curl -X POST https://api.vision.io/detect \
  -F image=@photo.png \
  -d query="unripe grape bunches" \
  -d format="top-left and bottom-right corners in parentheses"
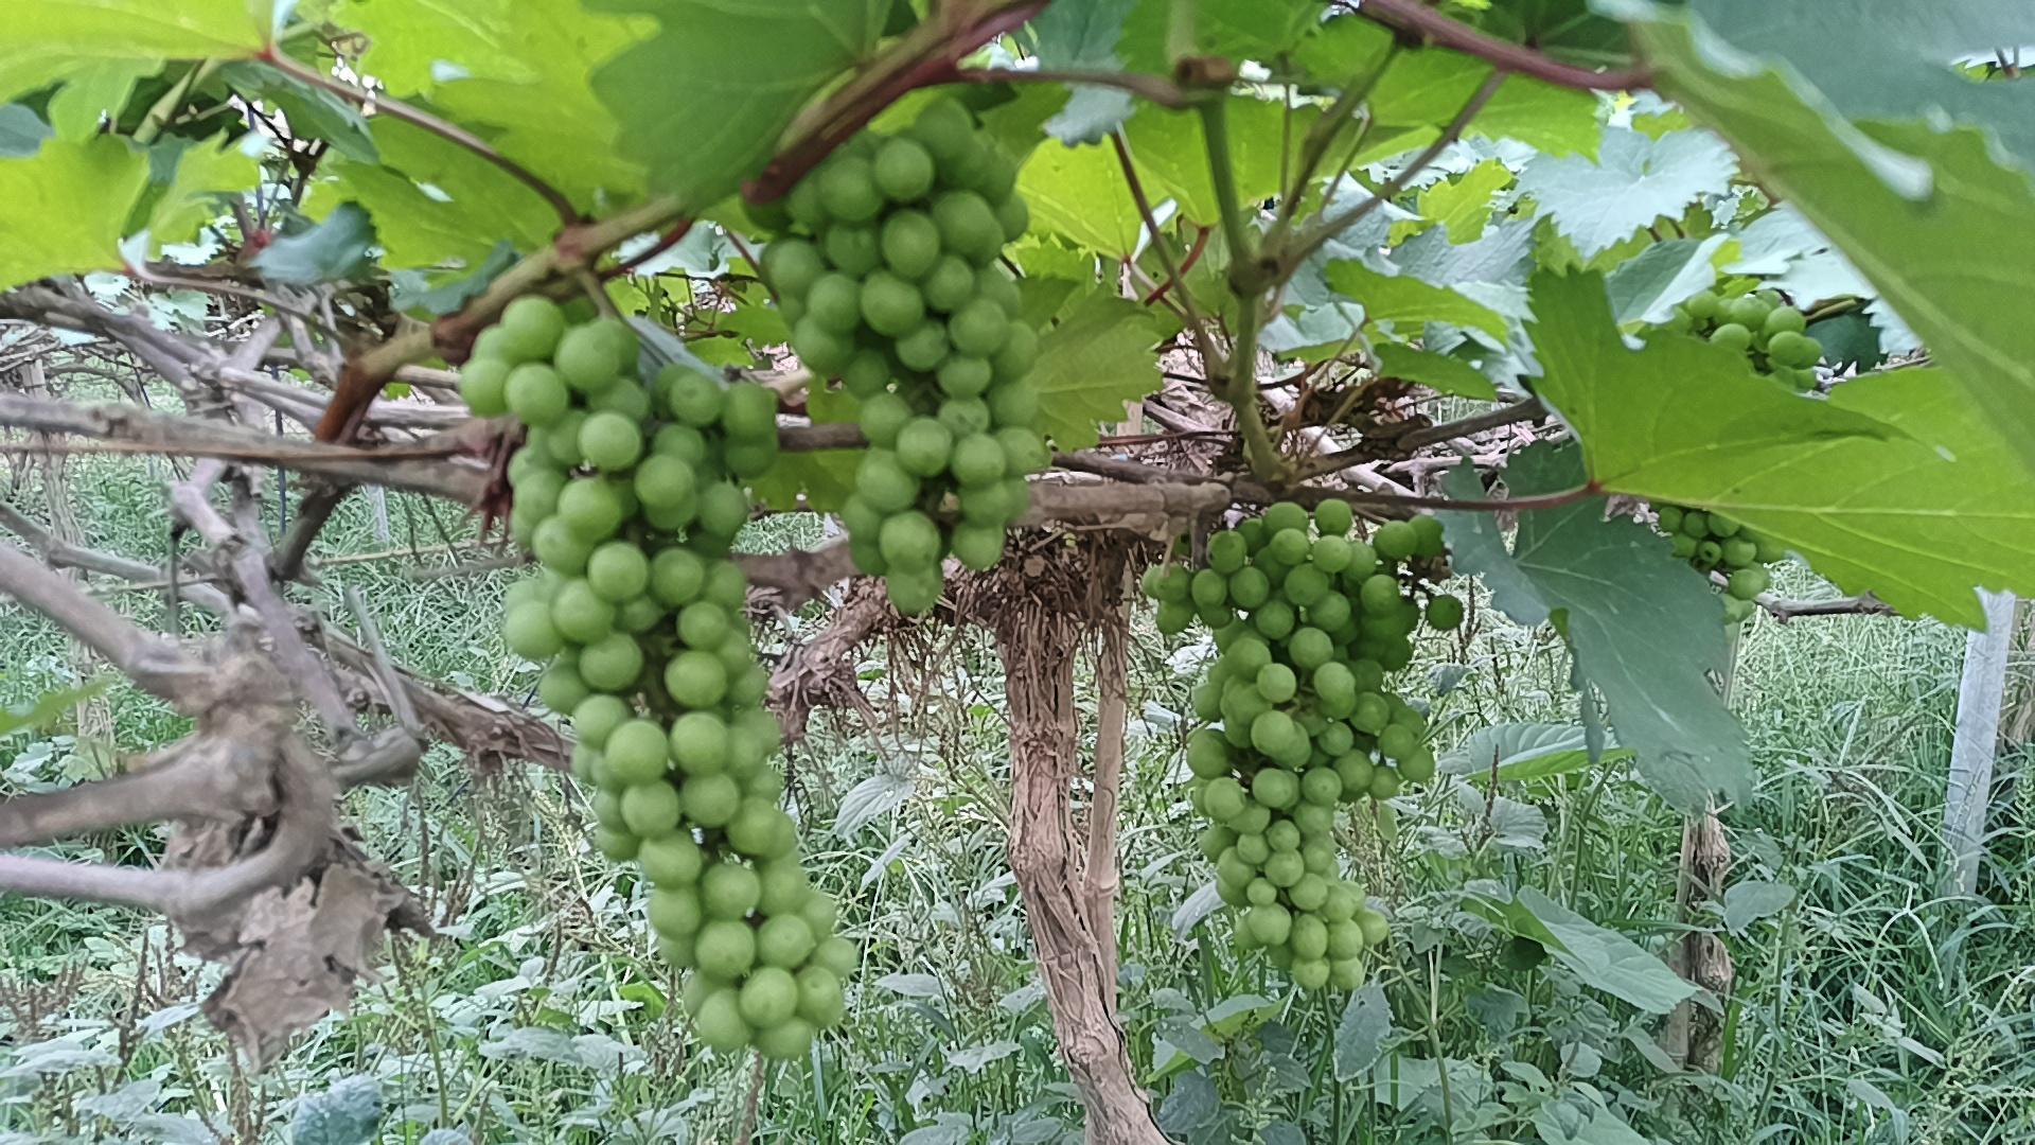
top-left (1143, 498), bottom-right (1464, 990)
top-left (740, 95), bottom-right (1055, 613)
top-left (1649, 288), bottom-right (1823, 600)
top-left (459, 294), bottom-right (856, 1061)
